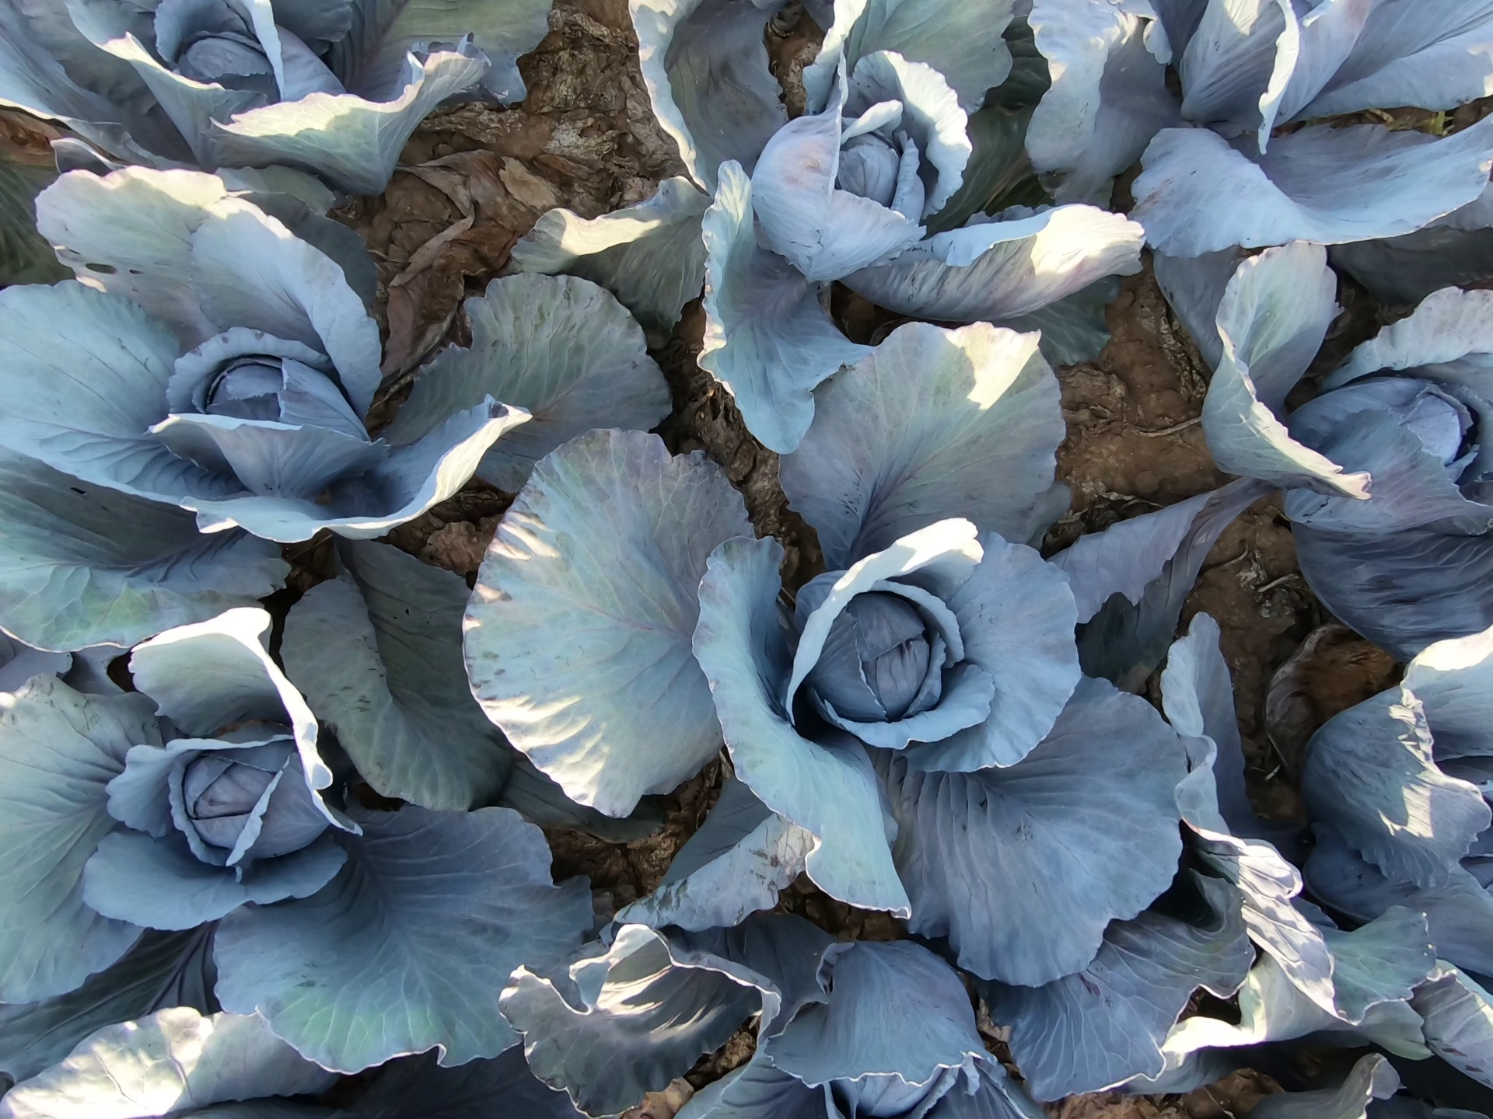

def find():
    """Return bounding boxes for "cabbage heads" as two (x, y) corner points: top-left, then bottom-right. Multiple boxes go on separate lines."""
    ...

(176, 33), (298, 141)
(826, 947), (967, 1117)
(808, 587), (944, 721)
(178, 740), (330, 854)
(204, 359), (332, 489)
(797, 126), (910, 257)
(1201, 2), (1344, 96)
(1315, 382), (1465, 510)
